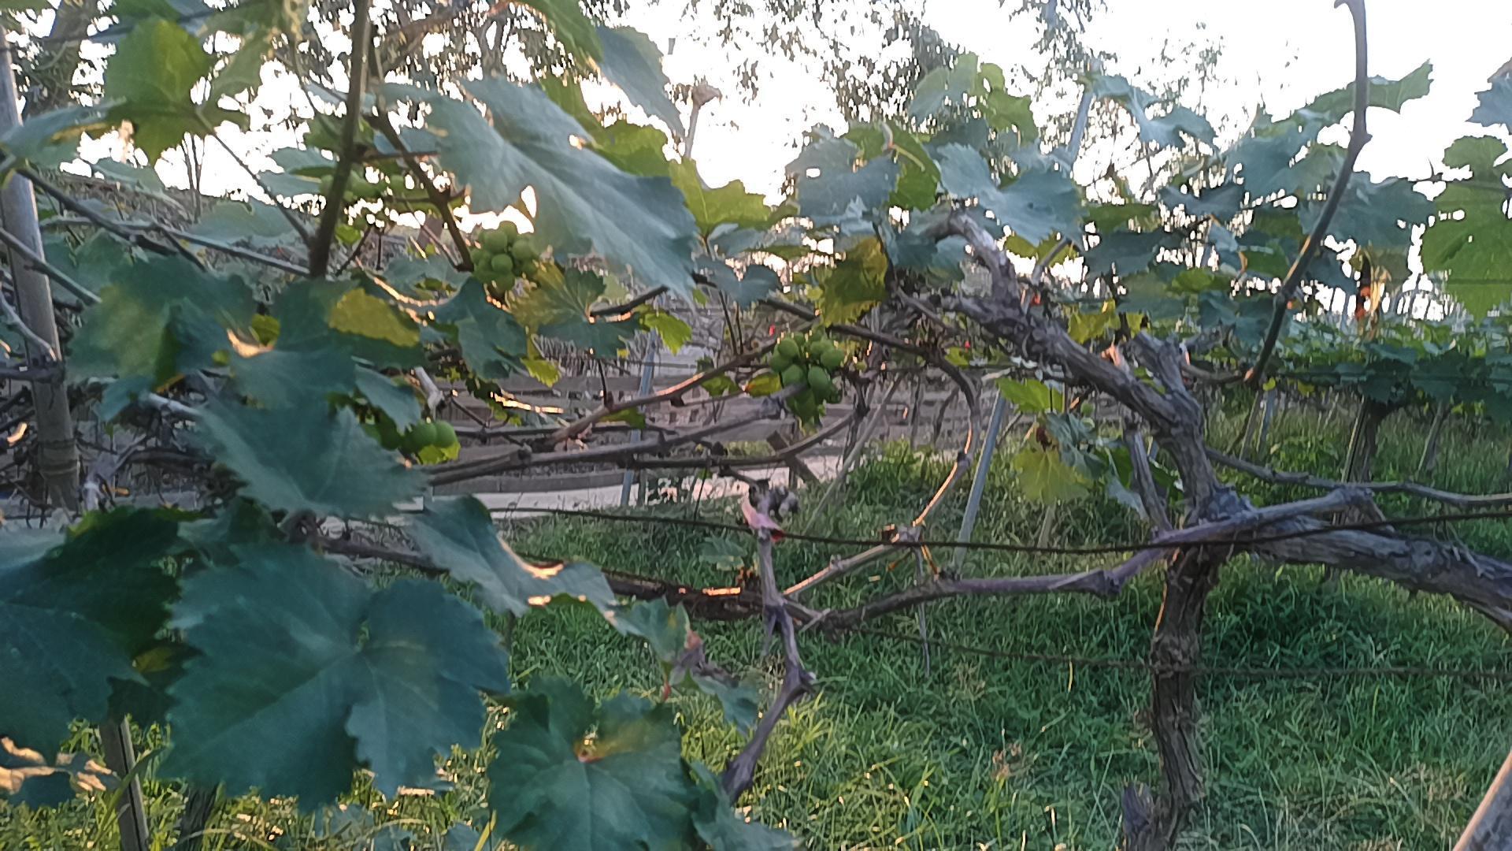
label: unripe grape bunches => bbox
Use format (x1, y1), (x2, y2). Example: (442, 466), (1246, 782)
(339, 164), (402, 209)
(469, 221), (546, 303)
(752, 330), (845, 424)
